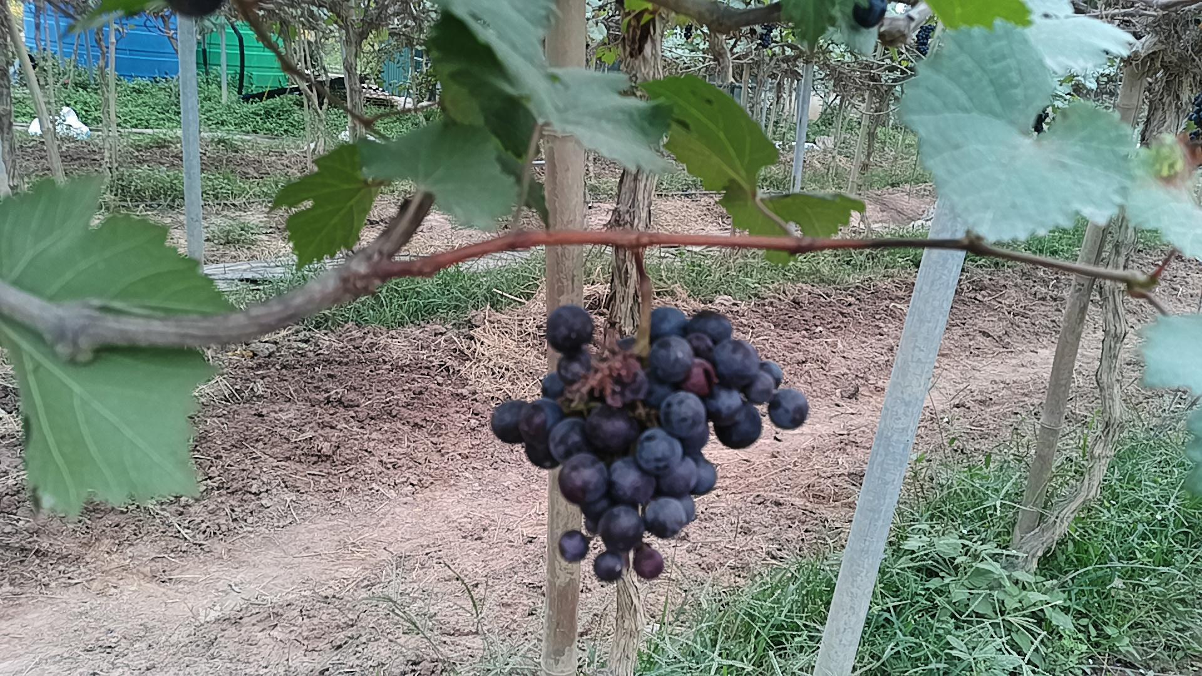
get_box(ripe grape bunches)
[853,0,887,28]
[758,24,775,48]
[912,24,935,55]
[491,305,808,580]
[559,530,590,561]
